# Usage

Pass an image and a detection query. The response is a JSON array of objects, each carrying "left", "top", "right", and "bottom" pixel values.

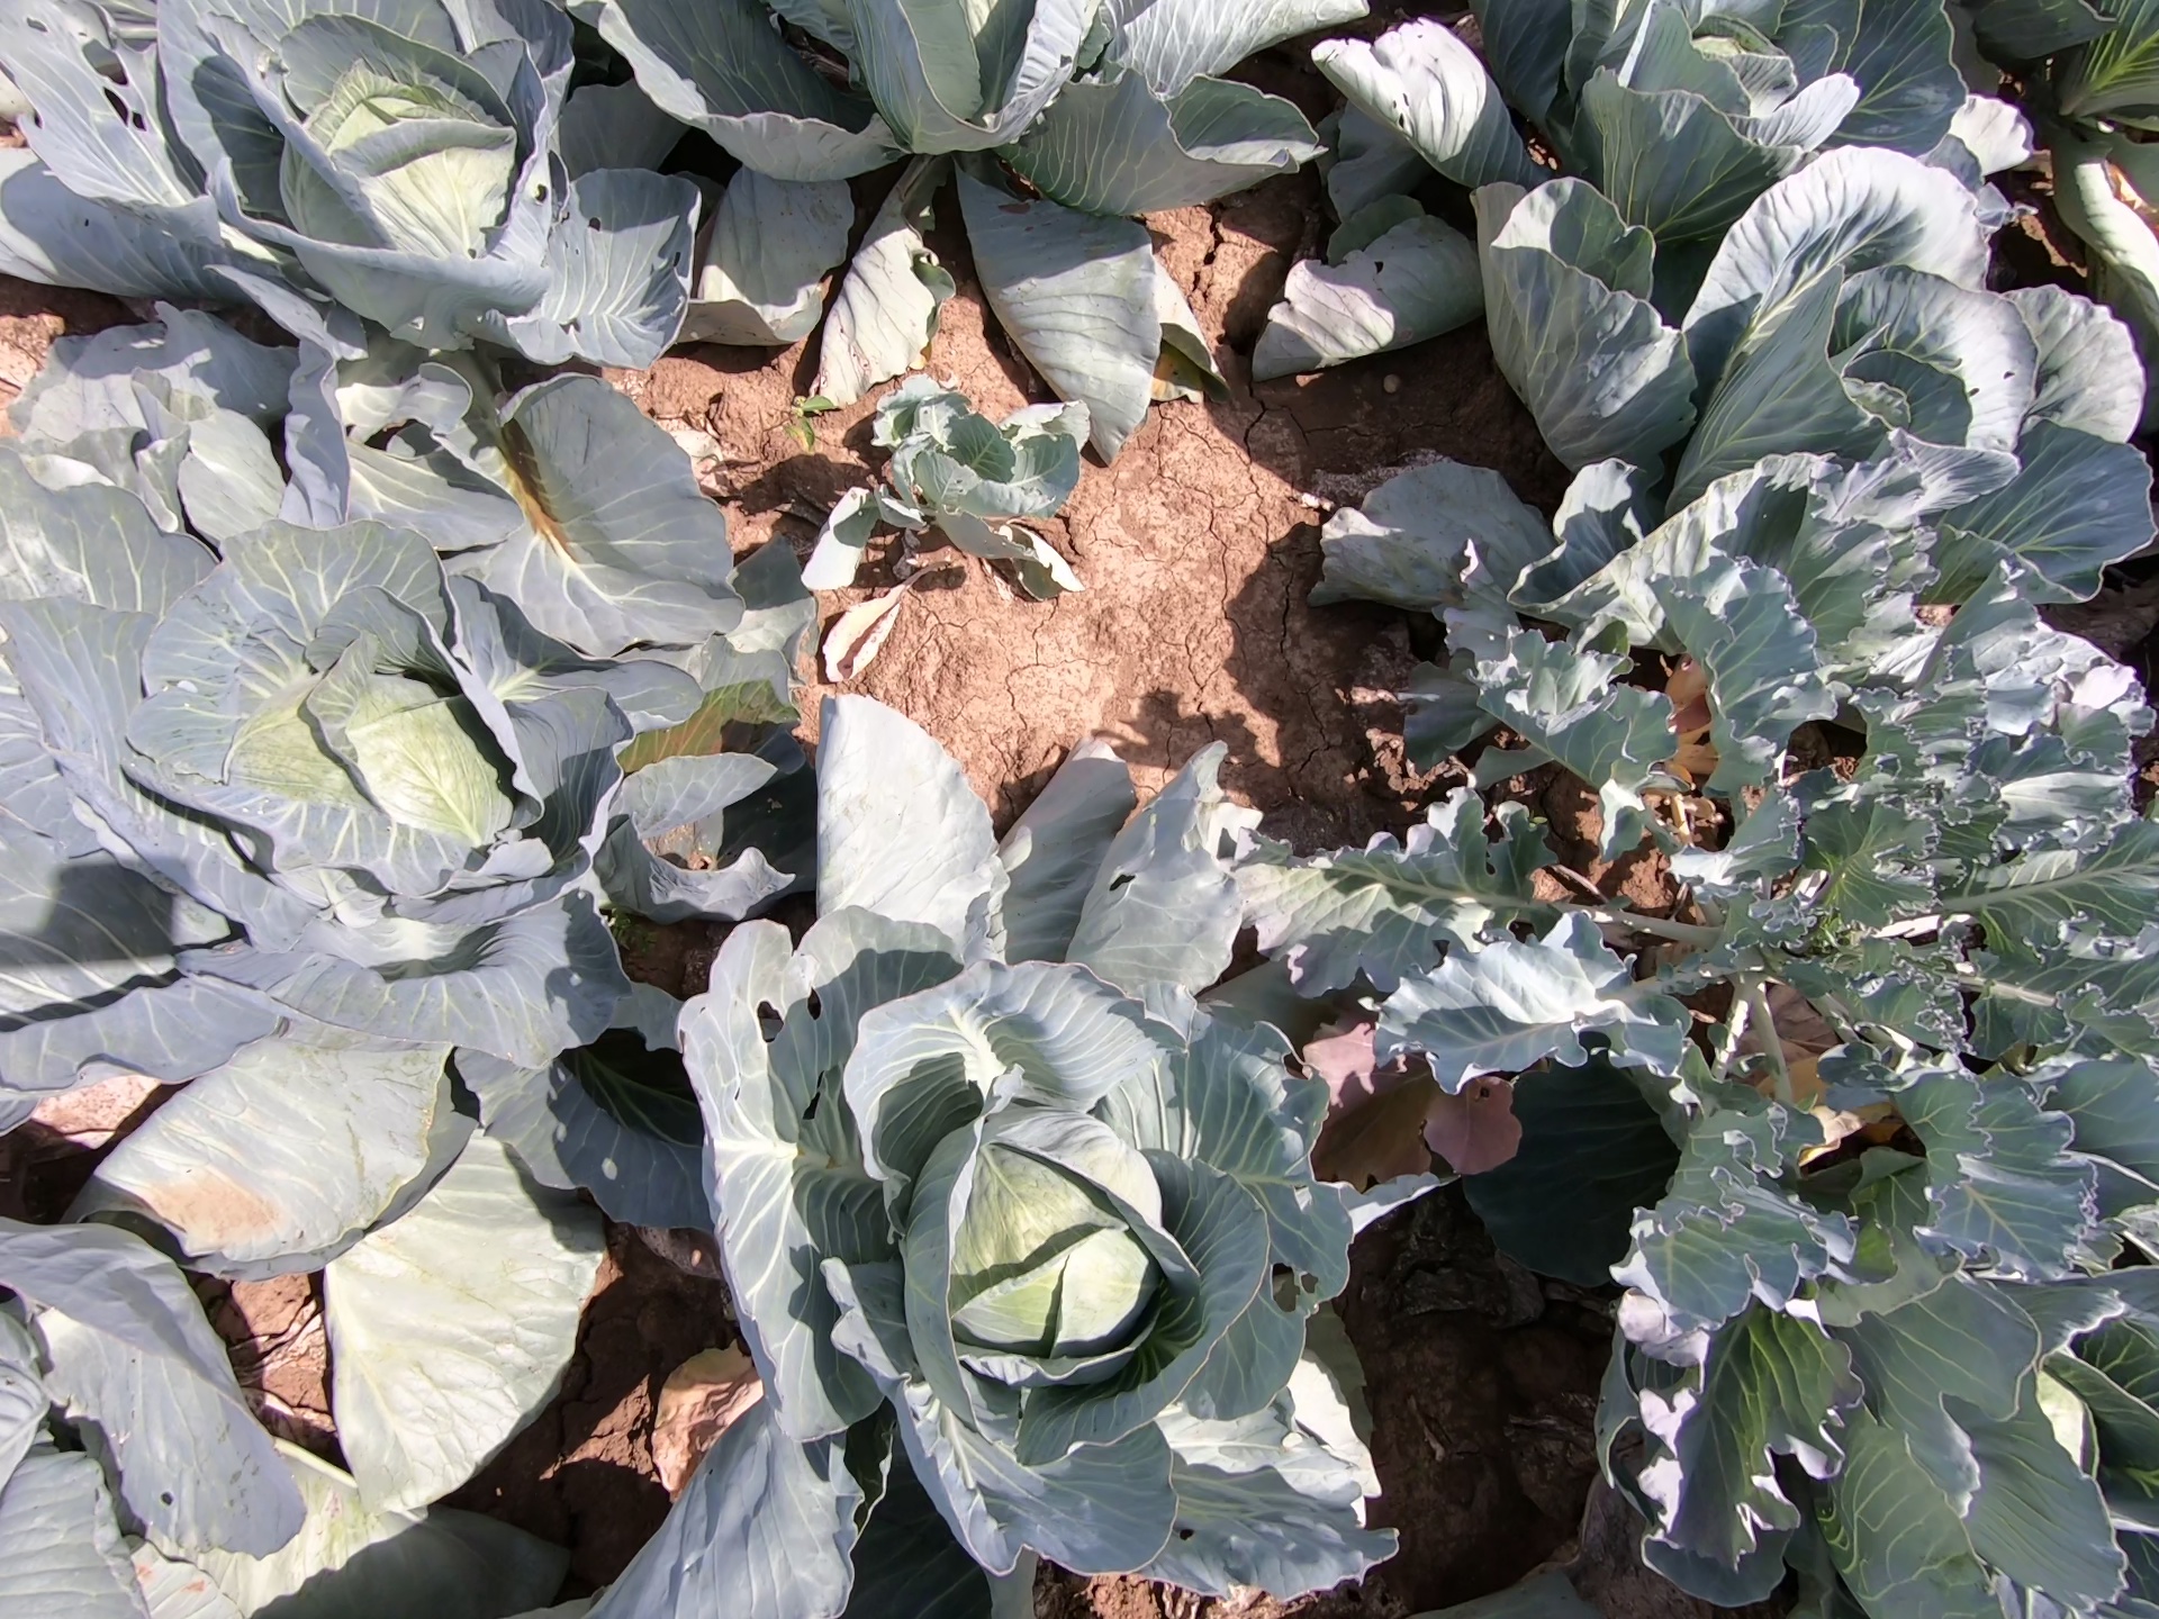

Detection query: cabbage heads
[
  {"left": 1627, "top": 35, "right": 1783, "bottom": 178},
  {"left": 218, "top": 672, "right": 521, "bottom": 896},
  {"left": 902, "top": 1106, "right": 1167, "bottom": 1385},
  {"left": 1886, "top": 1322, "right": 2102, "bottom": 1546},
  {"left": 283, "top": 89, "right": 536, "bottom": 328},
  {"left": 876, "top": 1, "right": 1076, "bottom": 134}
]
